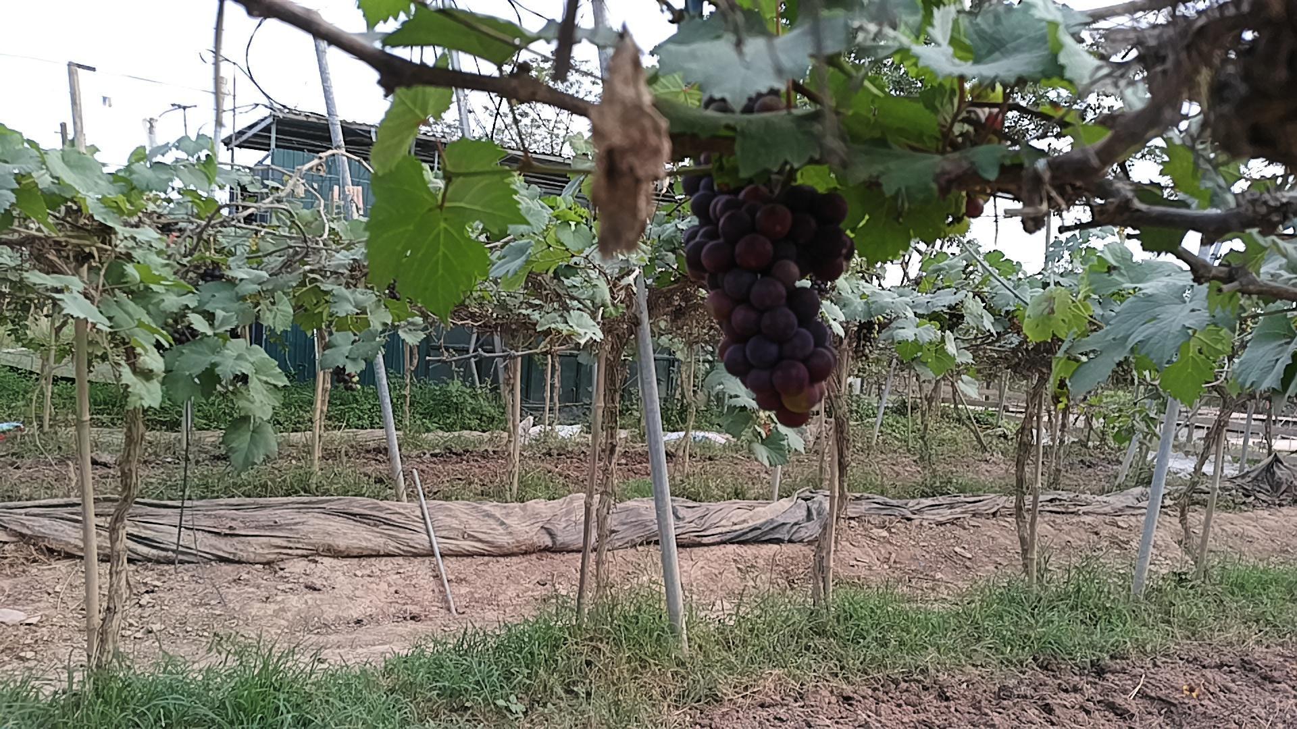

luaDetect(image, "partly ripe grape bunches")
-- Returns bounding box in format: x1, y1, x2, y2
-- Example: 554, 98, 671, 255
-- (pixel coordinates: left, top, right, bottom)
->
959, 109, 1006, 218
684, 92, 854, 427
